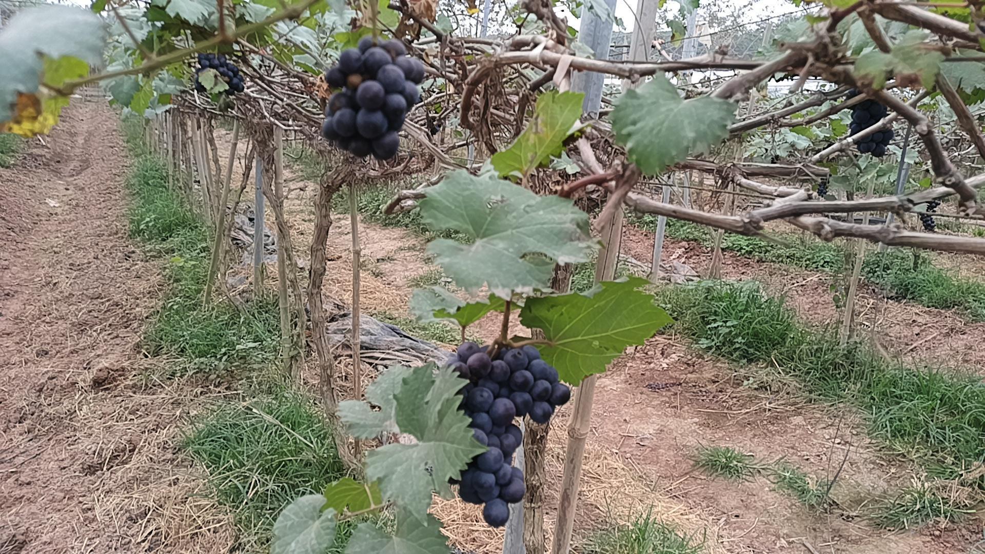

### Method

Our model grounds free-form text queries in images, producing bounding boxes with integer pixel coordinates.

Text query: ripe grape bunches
[322,37,425,160]
[843,89,895,157]
[445,342,569,527]
[816,178,829,198]
[193,53,244,107]
[918,200,940,232]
